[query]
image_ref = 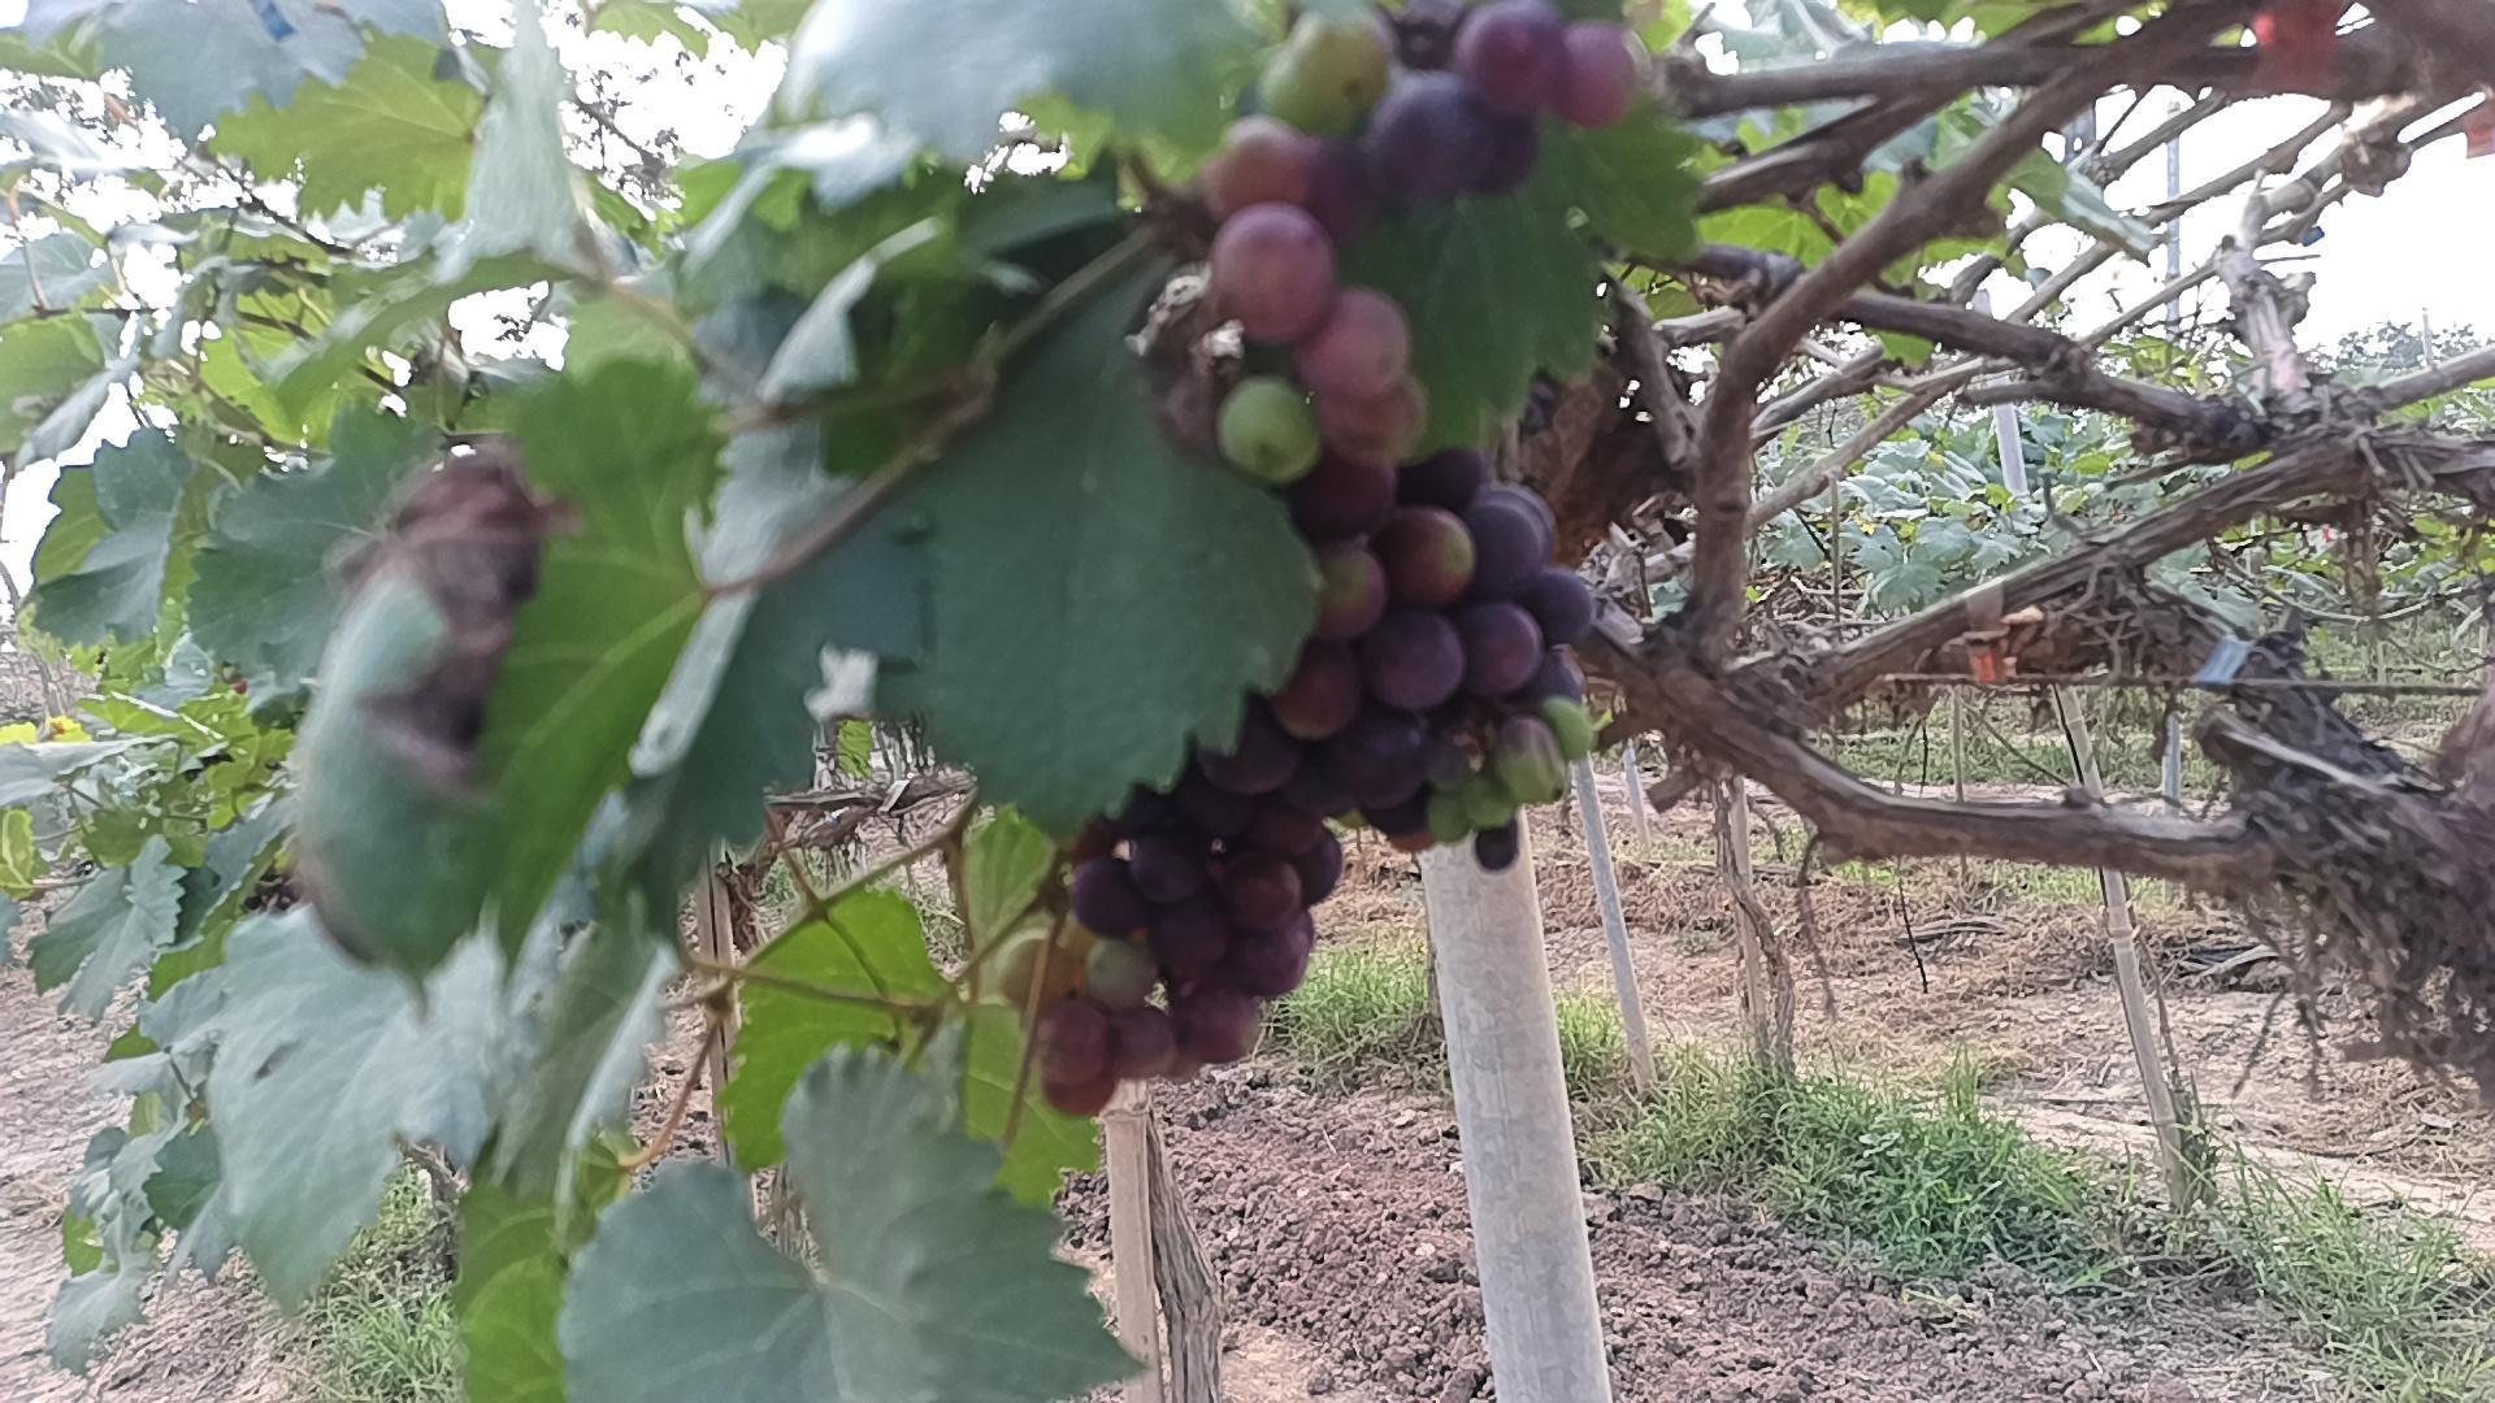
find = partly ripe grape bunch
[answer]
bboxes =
[995,0,1641,1119]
